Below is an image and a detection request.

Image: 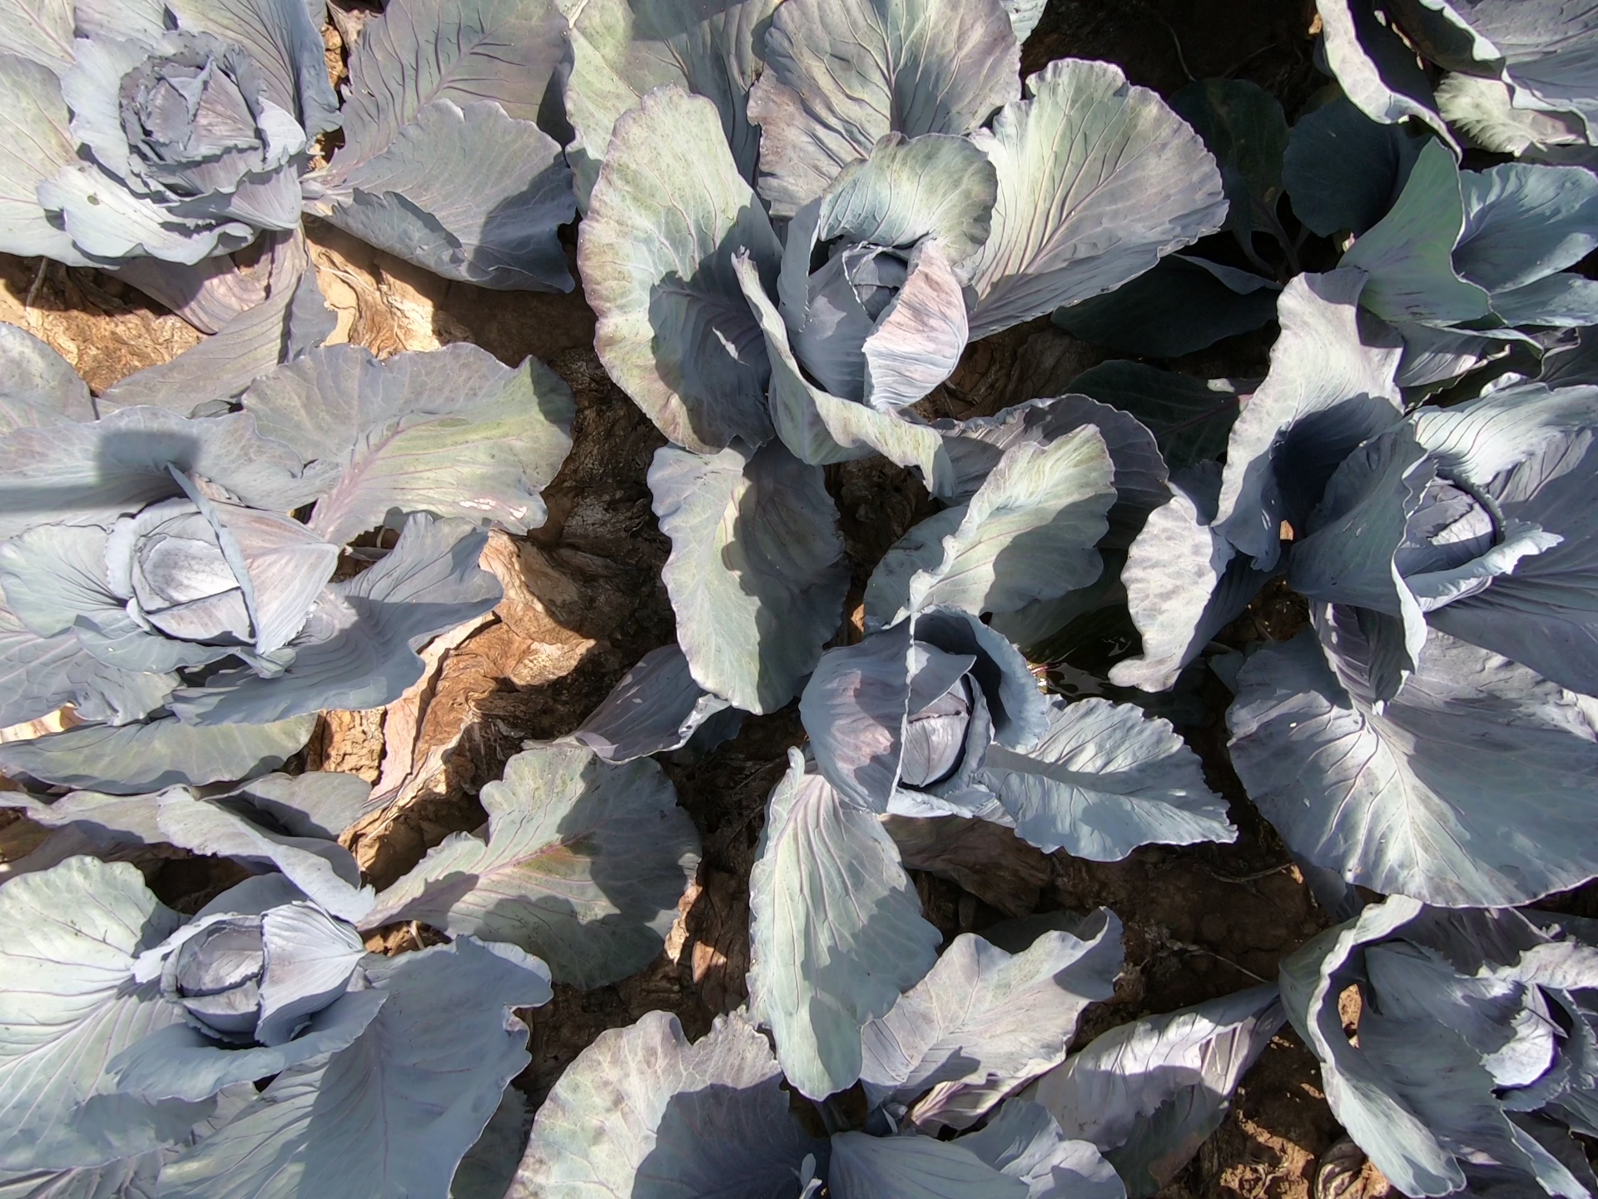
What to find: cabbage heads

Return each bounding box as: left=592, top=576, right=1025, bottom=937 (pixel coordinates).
left=1408, top=958, right=1556, bottom=1092
left=132, top=509, right=311, bottom=645
left=173, top=895, right=344, bottom=1035
left=143, top=76, right=252, bottom=187
left=803, top=246, right=960, bottom=396
left=838, top=641, right=978, bottom=789
left=1342, top=482, right=1497, bottom=604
